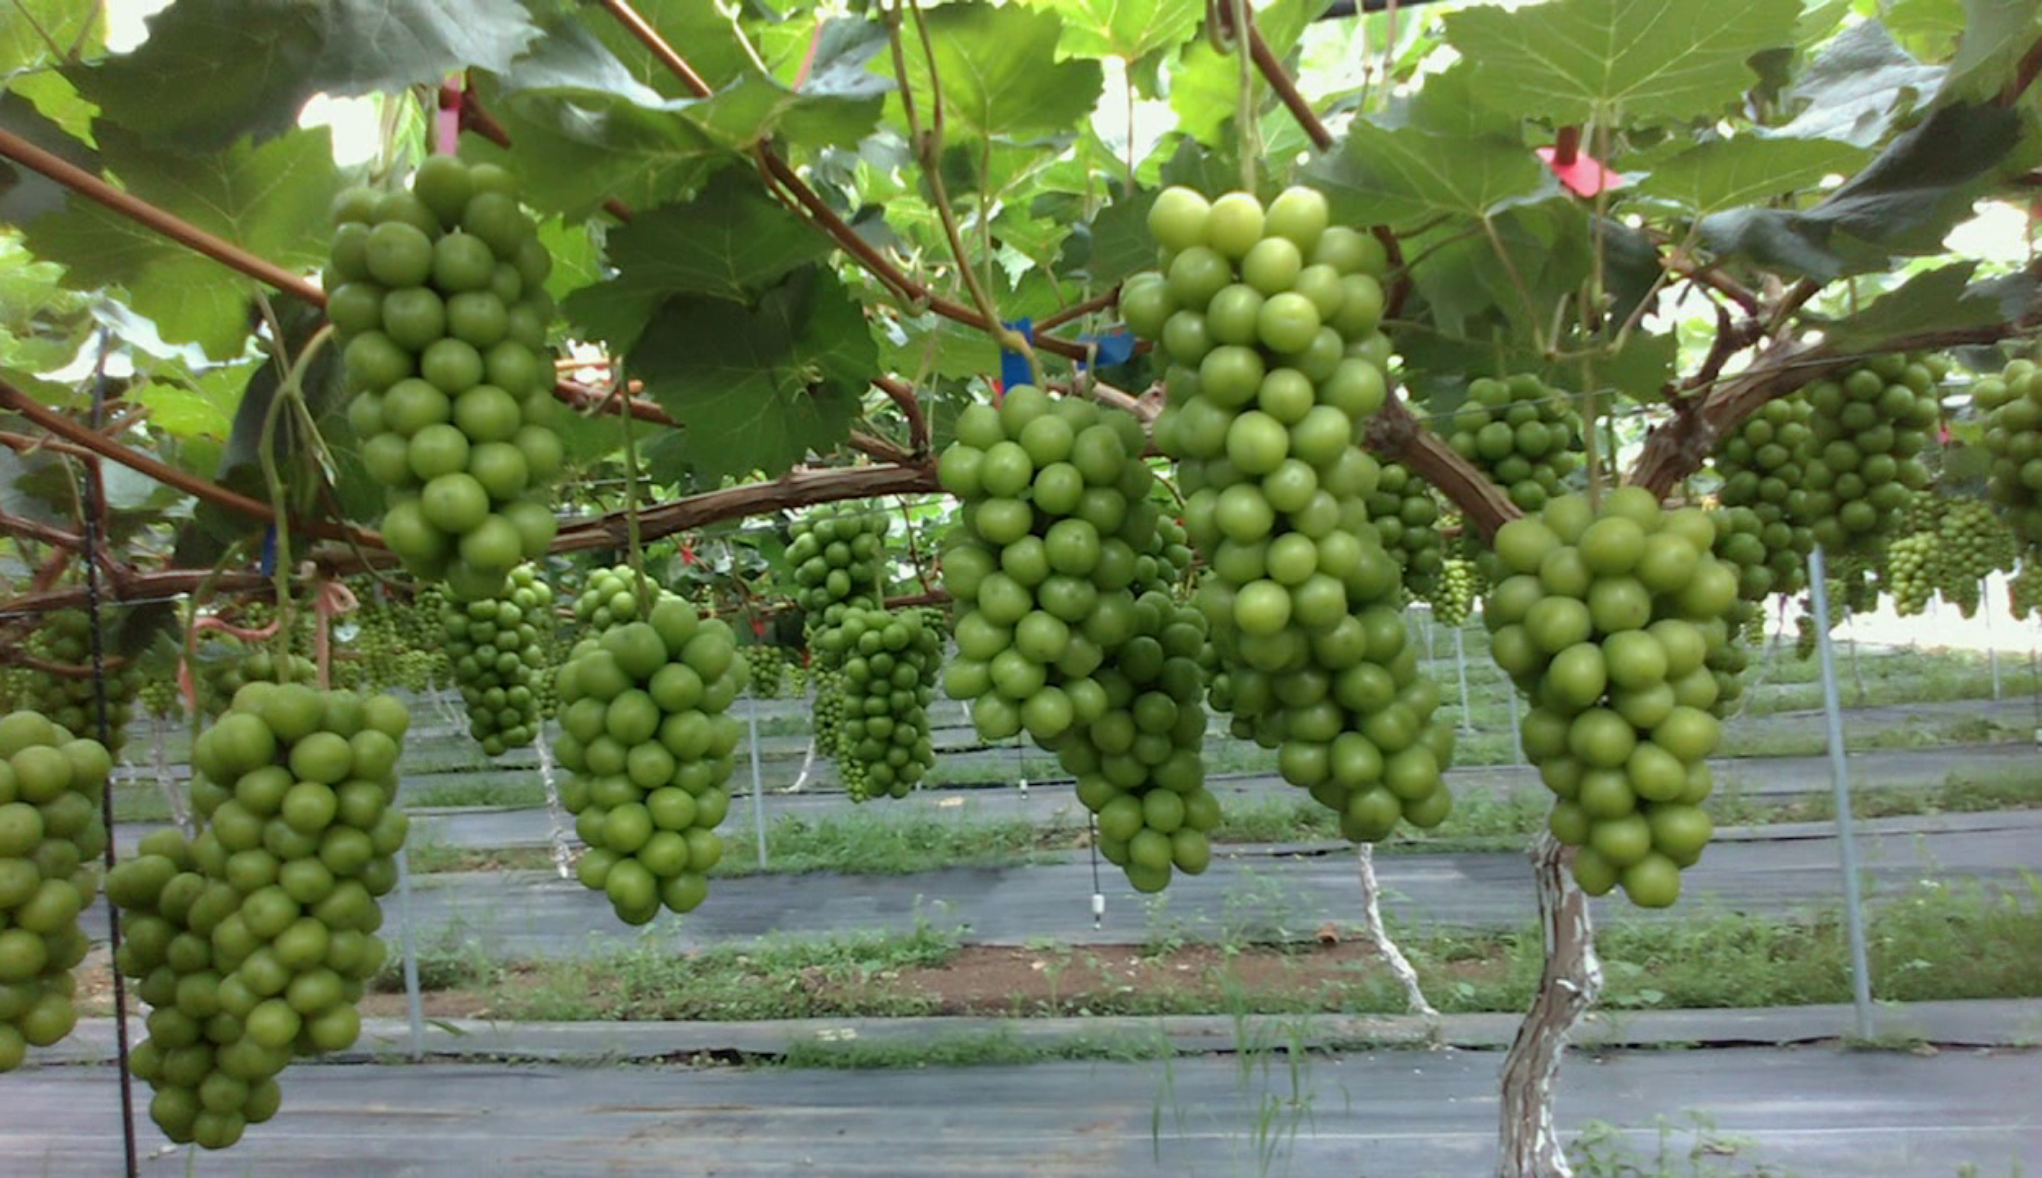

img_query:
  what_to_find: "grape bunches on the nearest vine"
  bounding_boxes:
[934,383,1158,741]
[324,154,564,602]
[188,681,411,1059]
[1116,185,1453,844]
[0,708,111,1075]
[1479,484,1743,906]
[105,828,296,1152]
[551,596,751,926]
[1031,592,1221,893]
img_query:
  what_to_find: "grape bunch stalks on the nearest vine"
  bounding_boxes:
[1230,0,1258,198]
[185,528,272,749]
[887,26,1047,388]
[259,324,329,684]
[424,85,439,154]
[1577,280,1600,520]
[622,355,648,622]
